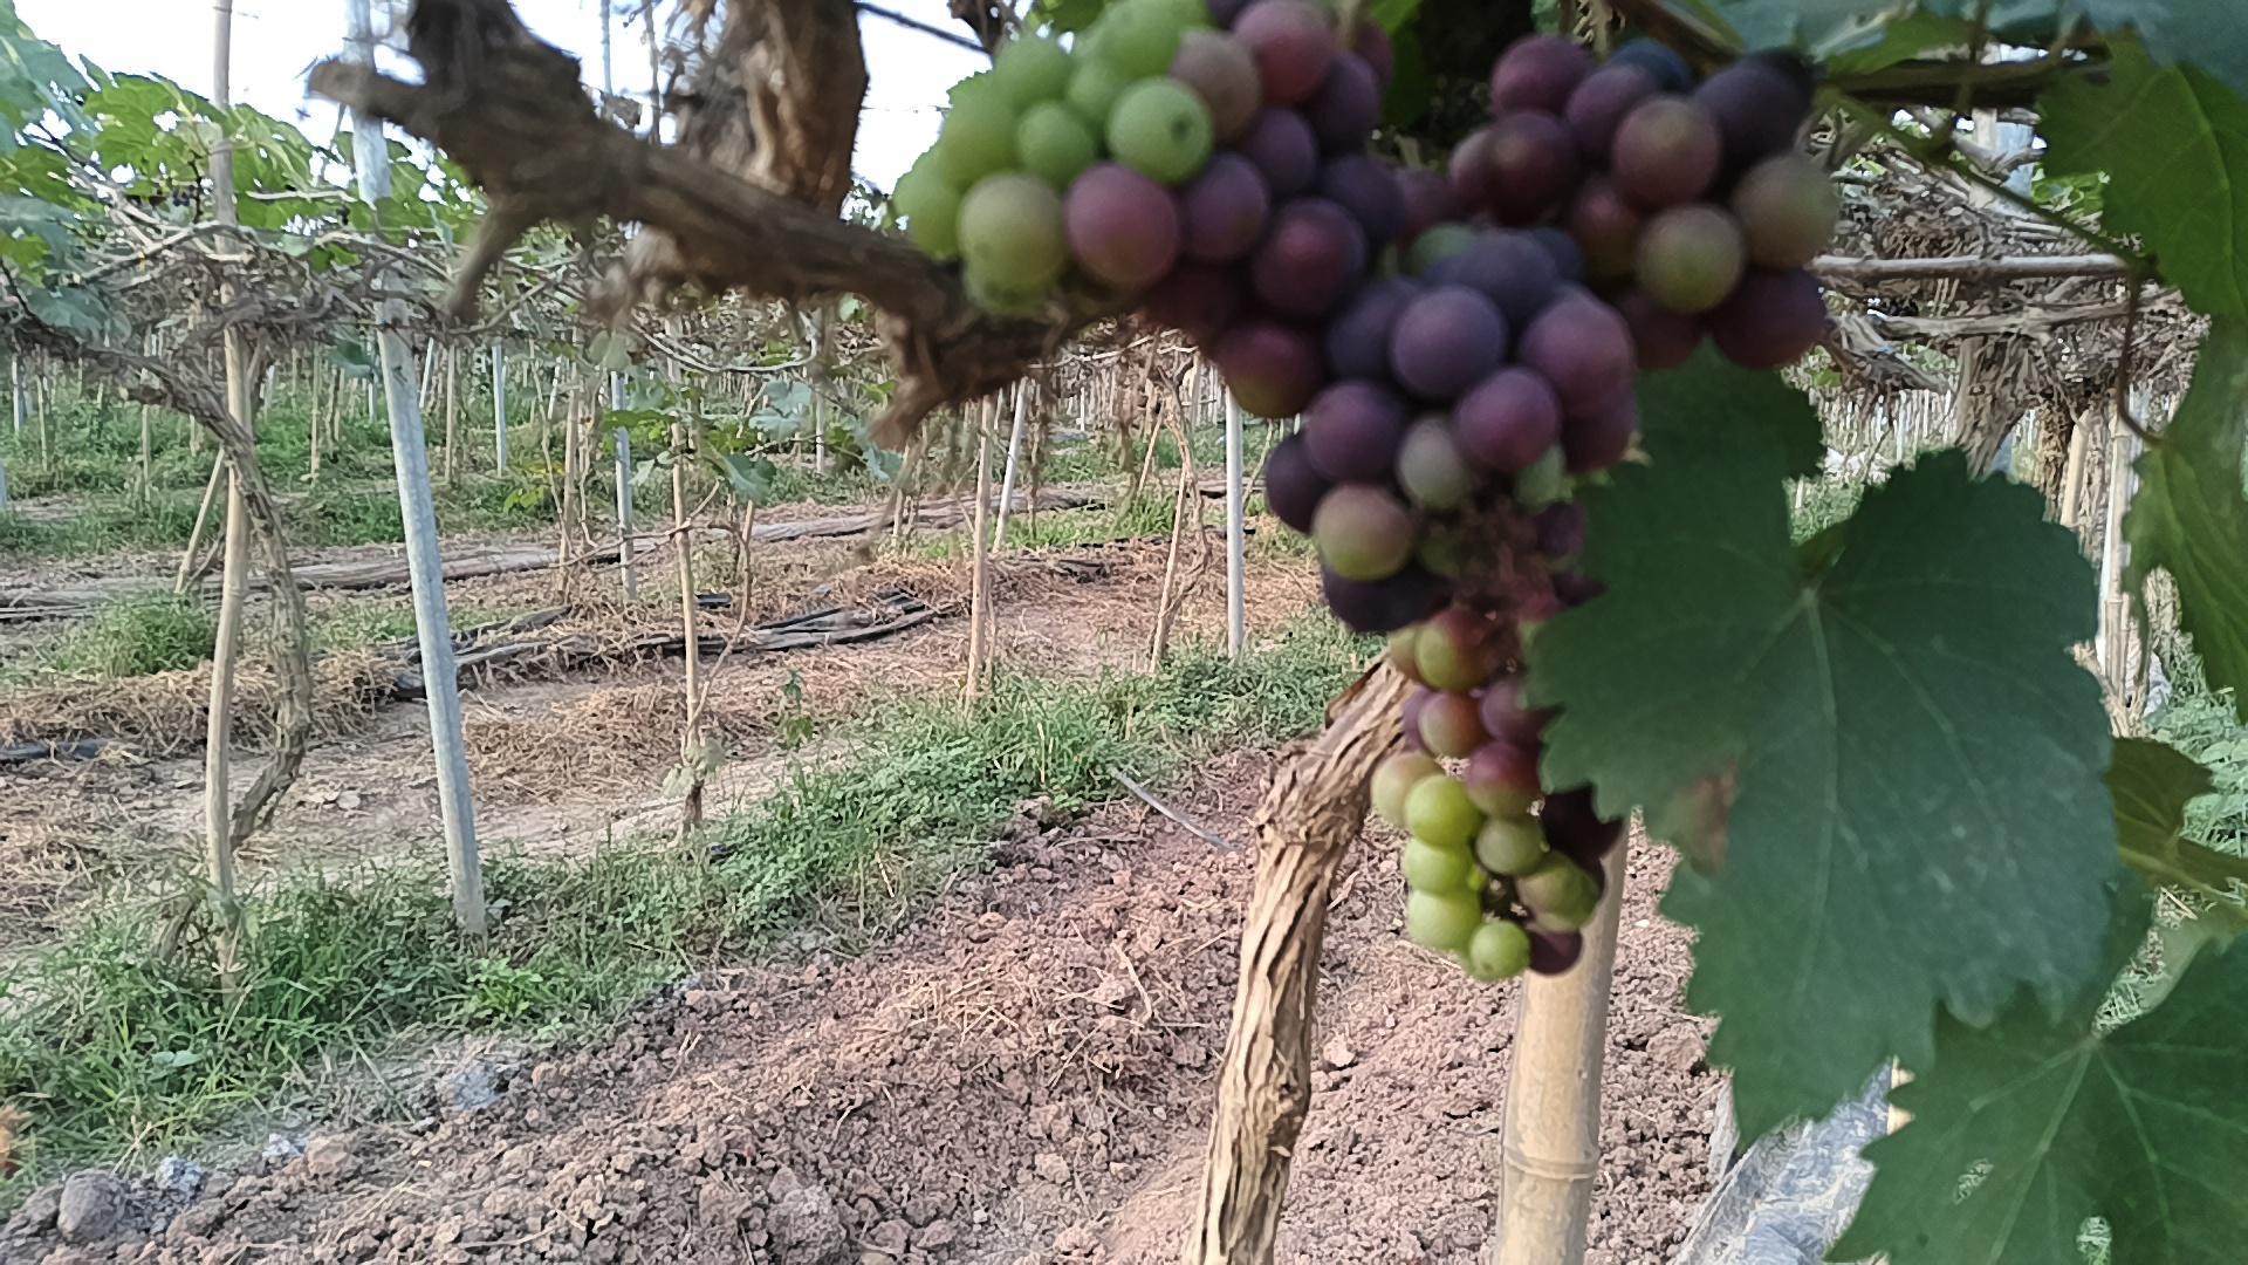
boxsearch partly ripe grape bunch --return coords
[892,0,1832,980]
